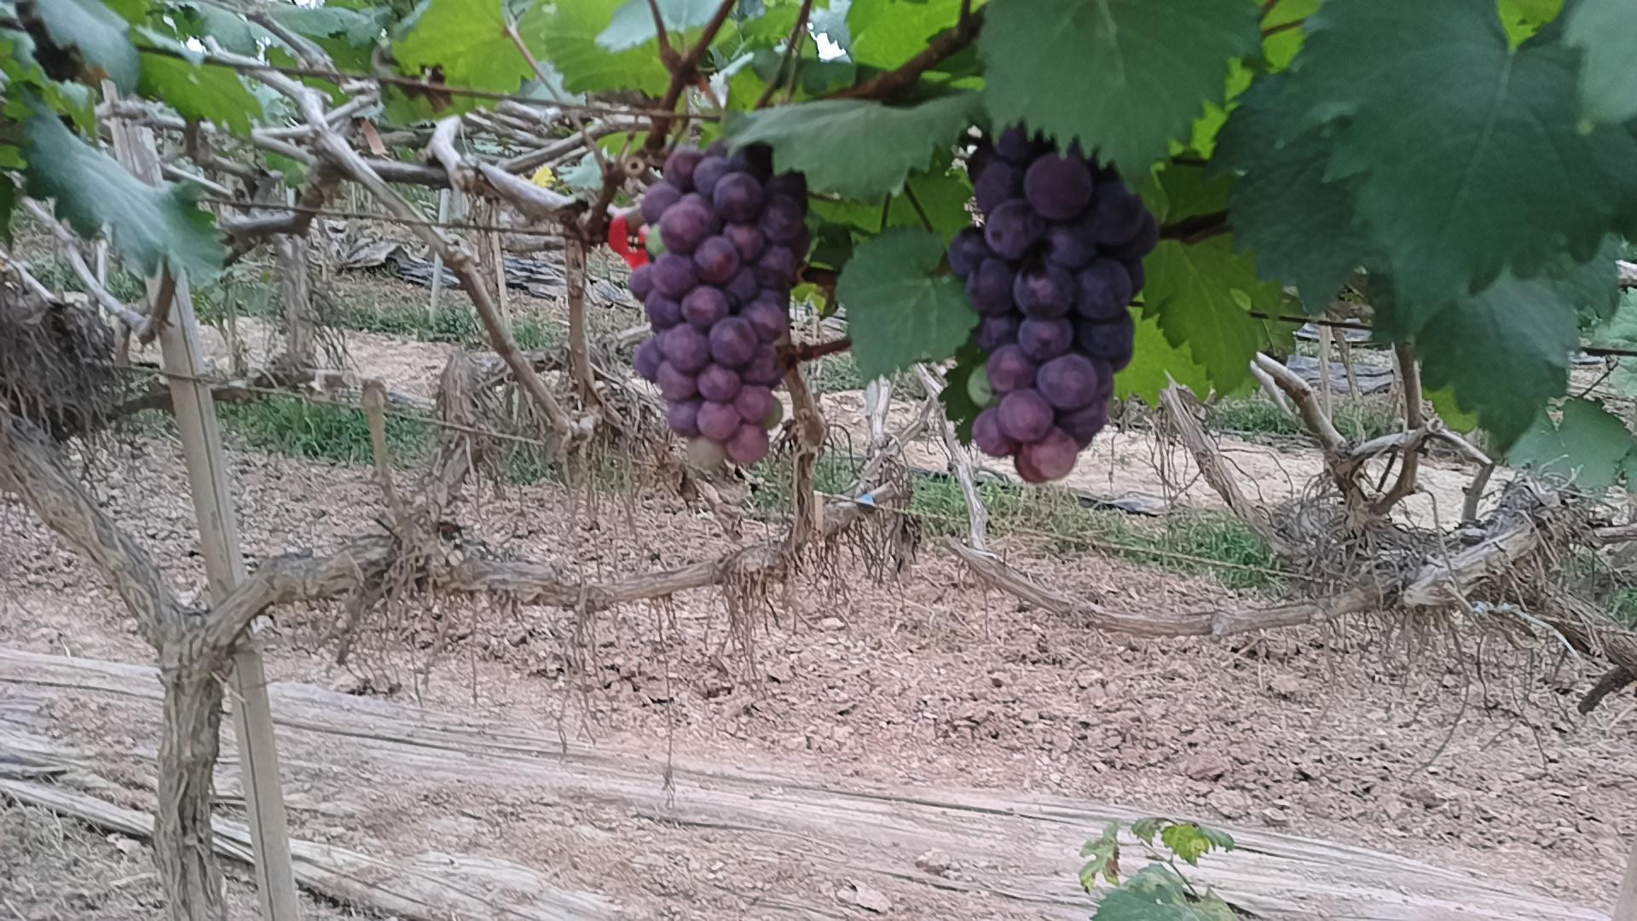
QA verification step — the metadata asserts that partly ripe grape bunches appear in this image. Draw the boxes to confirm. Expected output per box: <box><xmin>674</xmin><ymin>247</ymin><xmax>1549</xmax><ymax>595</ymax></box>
<box><xmin>946</xmin><ymin>126</ymin><xmax>1158</xmax><ymax>484</ymax></box>
<box><xmin>629</xmin><ymin>140</ymin><xmax>810</xmax><ymax>464</ymax></box>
